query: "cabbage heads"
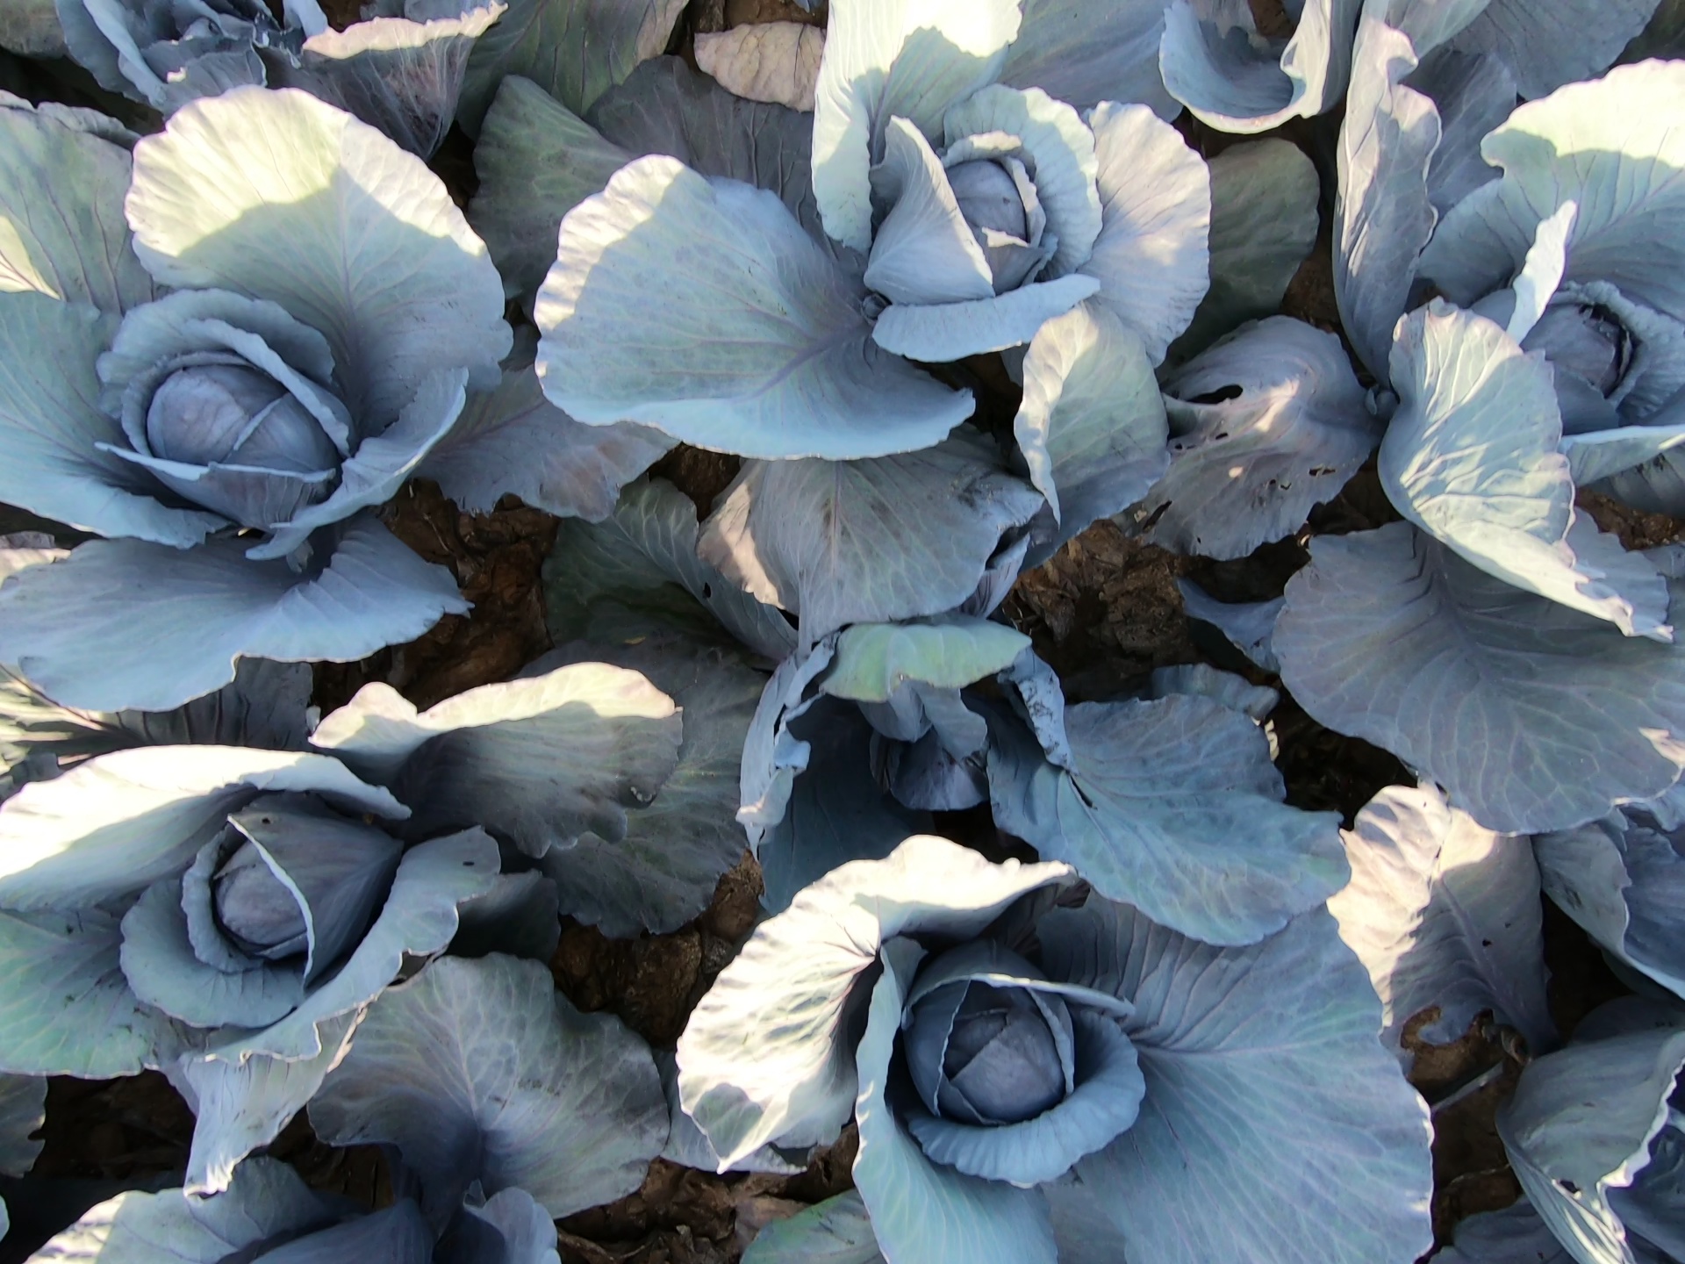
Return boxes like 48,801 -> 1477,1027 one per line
216,824 -> 363,951
848,617 -> 963,739
911,952 -> 1070,1121
147,357 -> 320,497
1471,295 -> 1632,438
895,154 -> 1036,297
